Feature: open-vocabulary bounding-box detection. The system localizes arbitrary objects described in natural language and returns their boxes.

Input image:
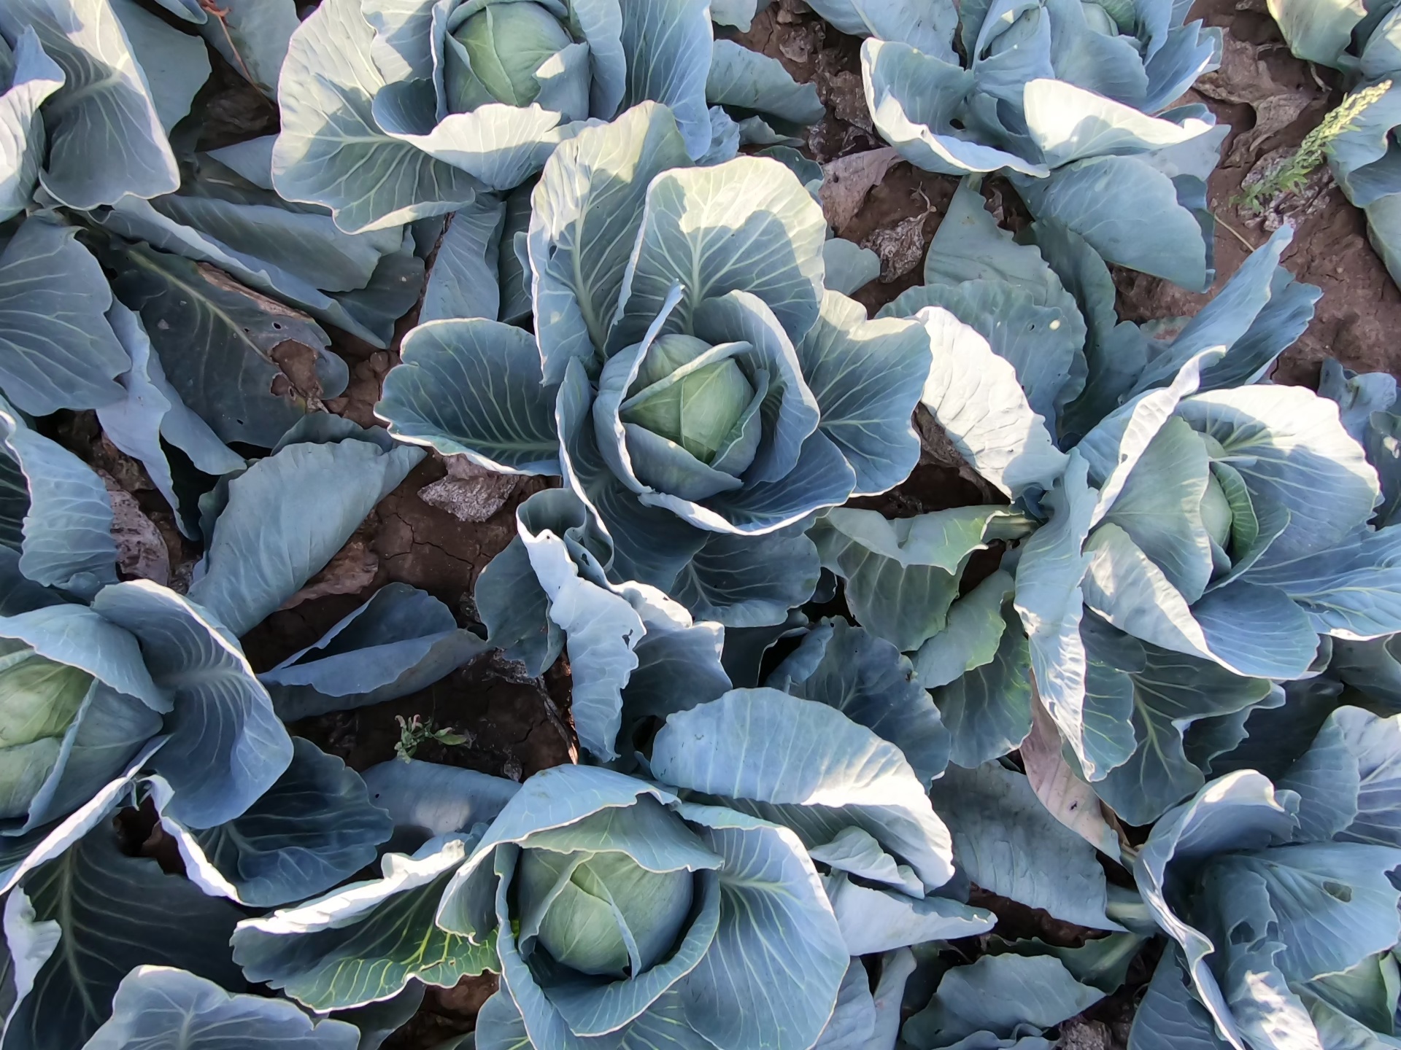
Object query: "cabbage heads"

[519,793,698,975]
[1086,436,1240,583]
[1030,1,1126,118]
[606,331,762,496]
[2,635,153,826]
[440,4,582,145]
[1249,855,1399,1046]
